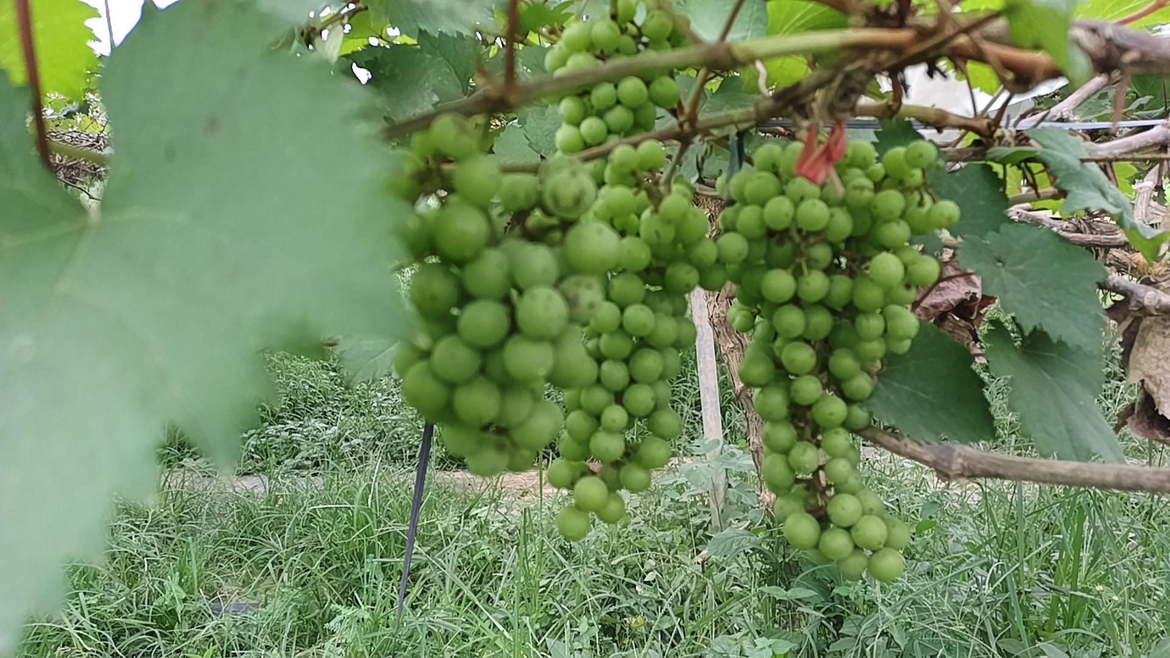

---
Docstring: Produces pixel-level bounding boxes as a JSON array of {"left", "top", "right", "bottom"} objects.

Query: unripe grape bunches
[
  {"left": 545, "top": 140, "right": 727, "bottom": 539},
  {"left": 544, "top": 0, "right": 695, "bottom": 156},
  {"left": 378, "top": 109, "right": 624, "bottom": 476},
  {"left": 716, "top": 140, "right": 957, "bottom": 582}
]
